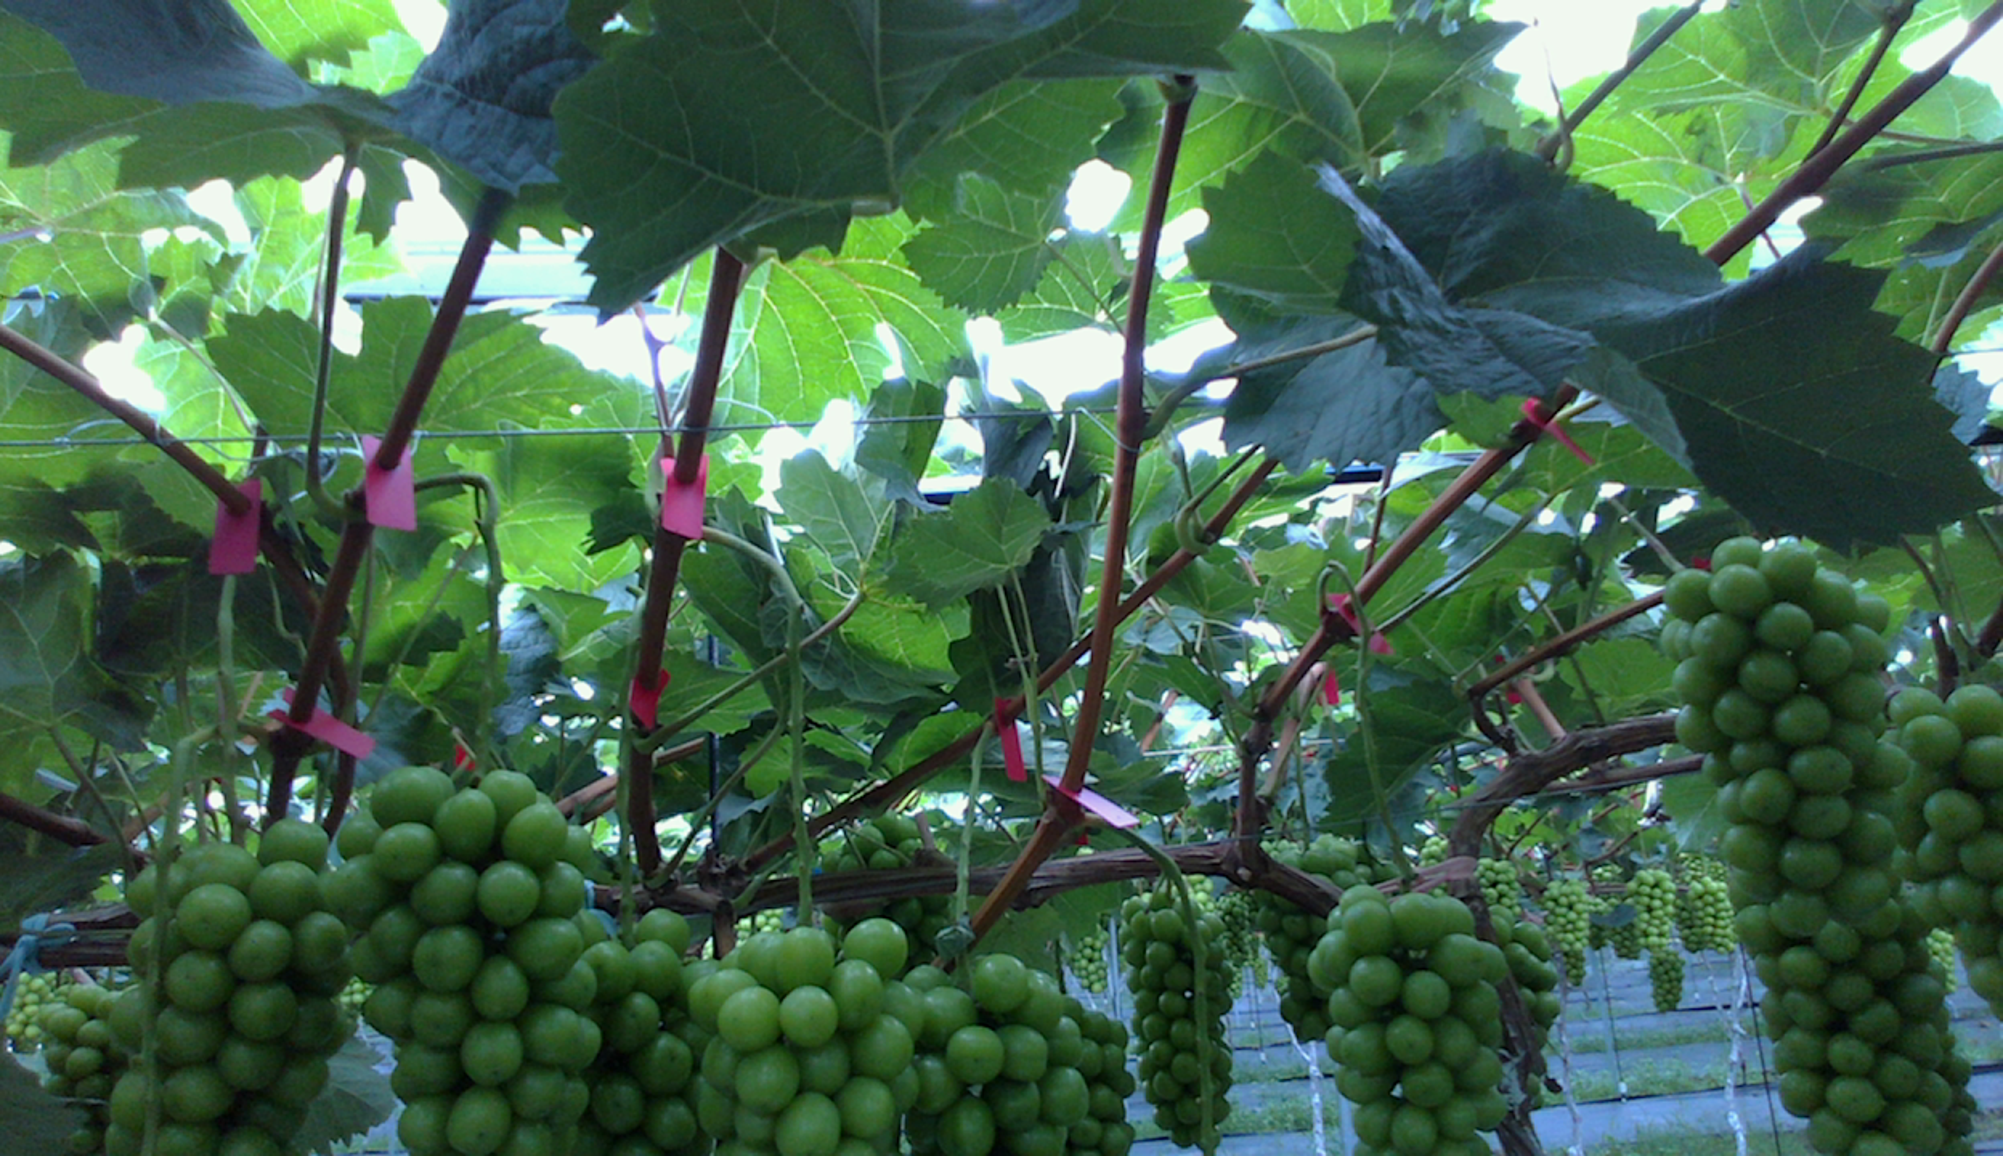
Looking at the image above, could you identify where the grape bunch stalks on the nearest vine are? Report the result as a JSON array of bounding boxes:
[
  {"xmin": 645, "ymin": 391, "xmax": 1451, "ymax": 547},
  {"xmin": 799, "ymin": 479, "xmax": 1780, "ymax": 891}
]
[
  {"xmin": 1611, "ymin": 499, "xmax": 1680, "ymax": 570},
  {"xmin": 618, "ymin": 734, "xmax": 636, "ymax": 946},
  {"xmin": 412, "ymin": 469, "xmax": 504, "ymax": 777},
  {"xmin": 1932, "ymin": 531, "xmax": 1971, "ymax": 684},
  {"xmin": 957, "ymin": 724, "xmax": 993, "ymax": 984},
  {"xmin": 1735, "ymin": 512, "xmax": 1751, "ymax": 533},
  {"xmin": 1314, "ymin": 560, "xmax": 1417, "ymax": 894},
  {"xmin": 215, "ymin": 575, "xmax": 250, "ymax": 843},
  {"xmin": 703, "ymin": 525, "xmax": 812, "ymax": 925}
]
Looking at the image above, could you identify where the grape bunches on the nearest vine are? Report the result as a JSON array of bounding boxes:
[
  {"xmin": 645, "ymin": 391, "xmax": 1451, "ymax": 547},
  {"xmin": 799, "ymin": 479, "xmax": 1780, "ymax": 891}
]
[
  {"xmin": 1308, "ymin": 885, "xmax": 1504, "ymax": 1154},
  {"xmin": 1887, "ymin": 682, "xmax": 2001, "ymax": 1021},
  {"xmin": 334, "ymin": 761, "xmax": 597, "ymax": 1153},
  {"xmin": 1661, "ymin": 536, "xmax": 1912, "ymax": 936},
  {"xmin": 1729, "ymin": 880, "xmax": 1952, "ymax": 1153},
  {"xmin": 907, "ymin": 954, "xmax": 1090, "ymax": 1153},
  {"xmin": 108, "ymin": 817, "xmax": 350, "ymax": 1154},
  {"xmin": 690, "ymin": 915, "xmax": 920, "ymax": 1154},
  {"xmin": 576, "ymin": 912, "xmax": 716, "ymax": 1153}
]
